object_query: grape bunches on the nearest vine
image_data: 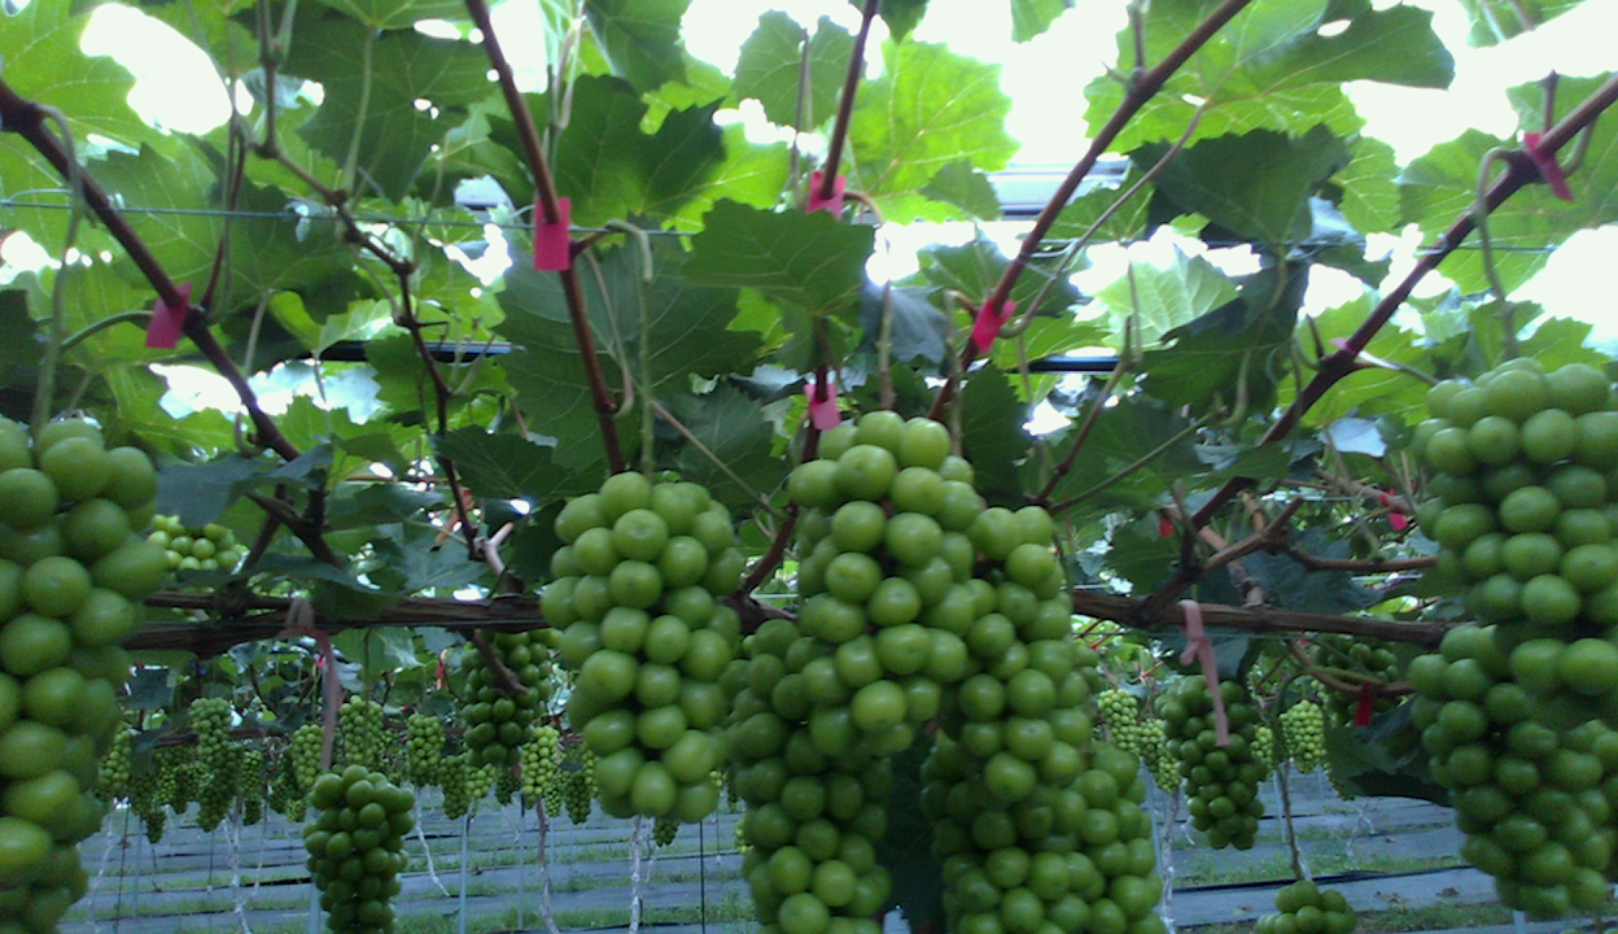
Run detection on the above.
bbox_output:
[539,471,744,825]
[957,503,1096,803]
[0,411,166,933]
[1413,354,1617,637]
[722,617,896,933]
[923,736,1166,931]
[790,409,981,761]
[1405,625,1617,921]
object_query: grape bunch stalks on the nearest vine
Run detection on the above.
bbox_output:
[573,219,656,471]
[875,276,896,405]
[944,287,976,454]
[34,101,99,420]
[1473,145,1521,350]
